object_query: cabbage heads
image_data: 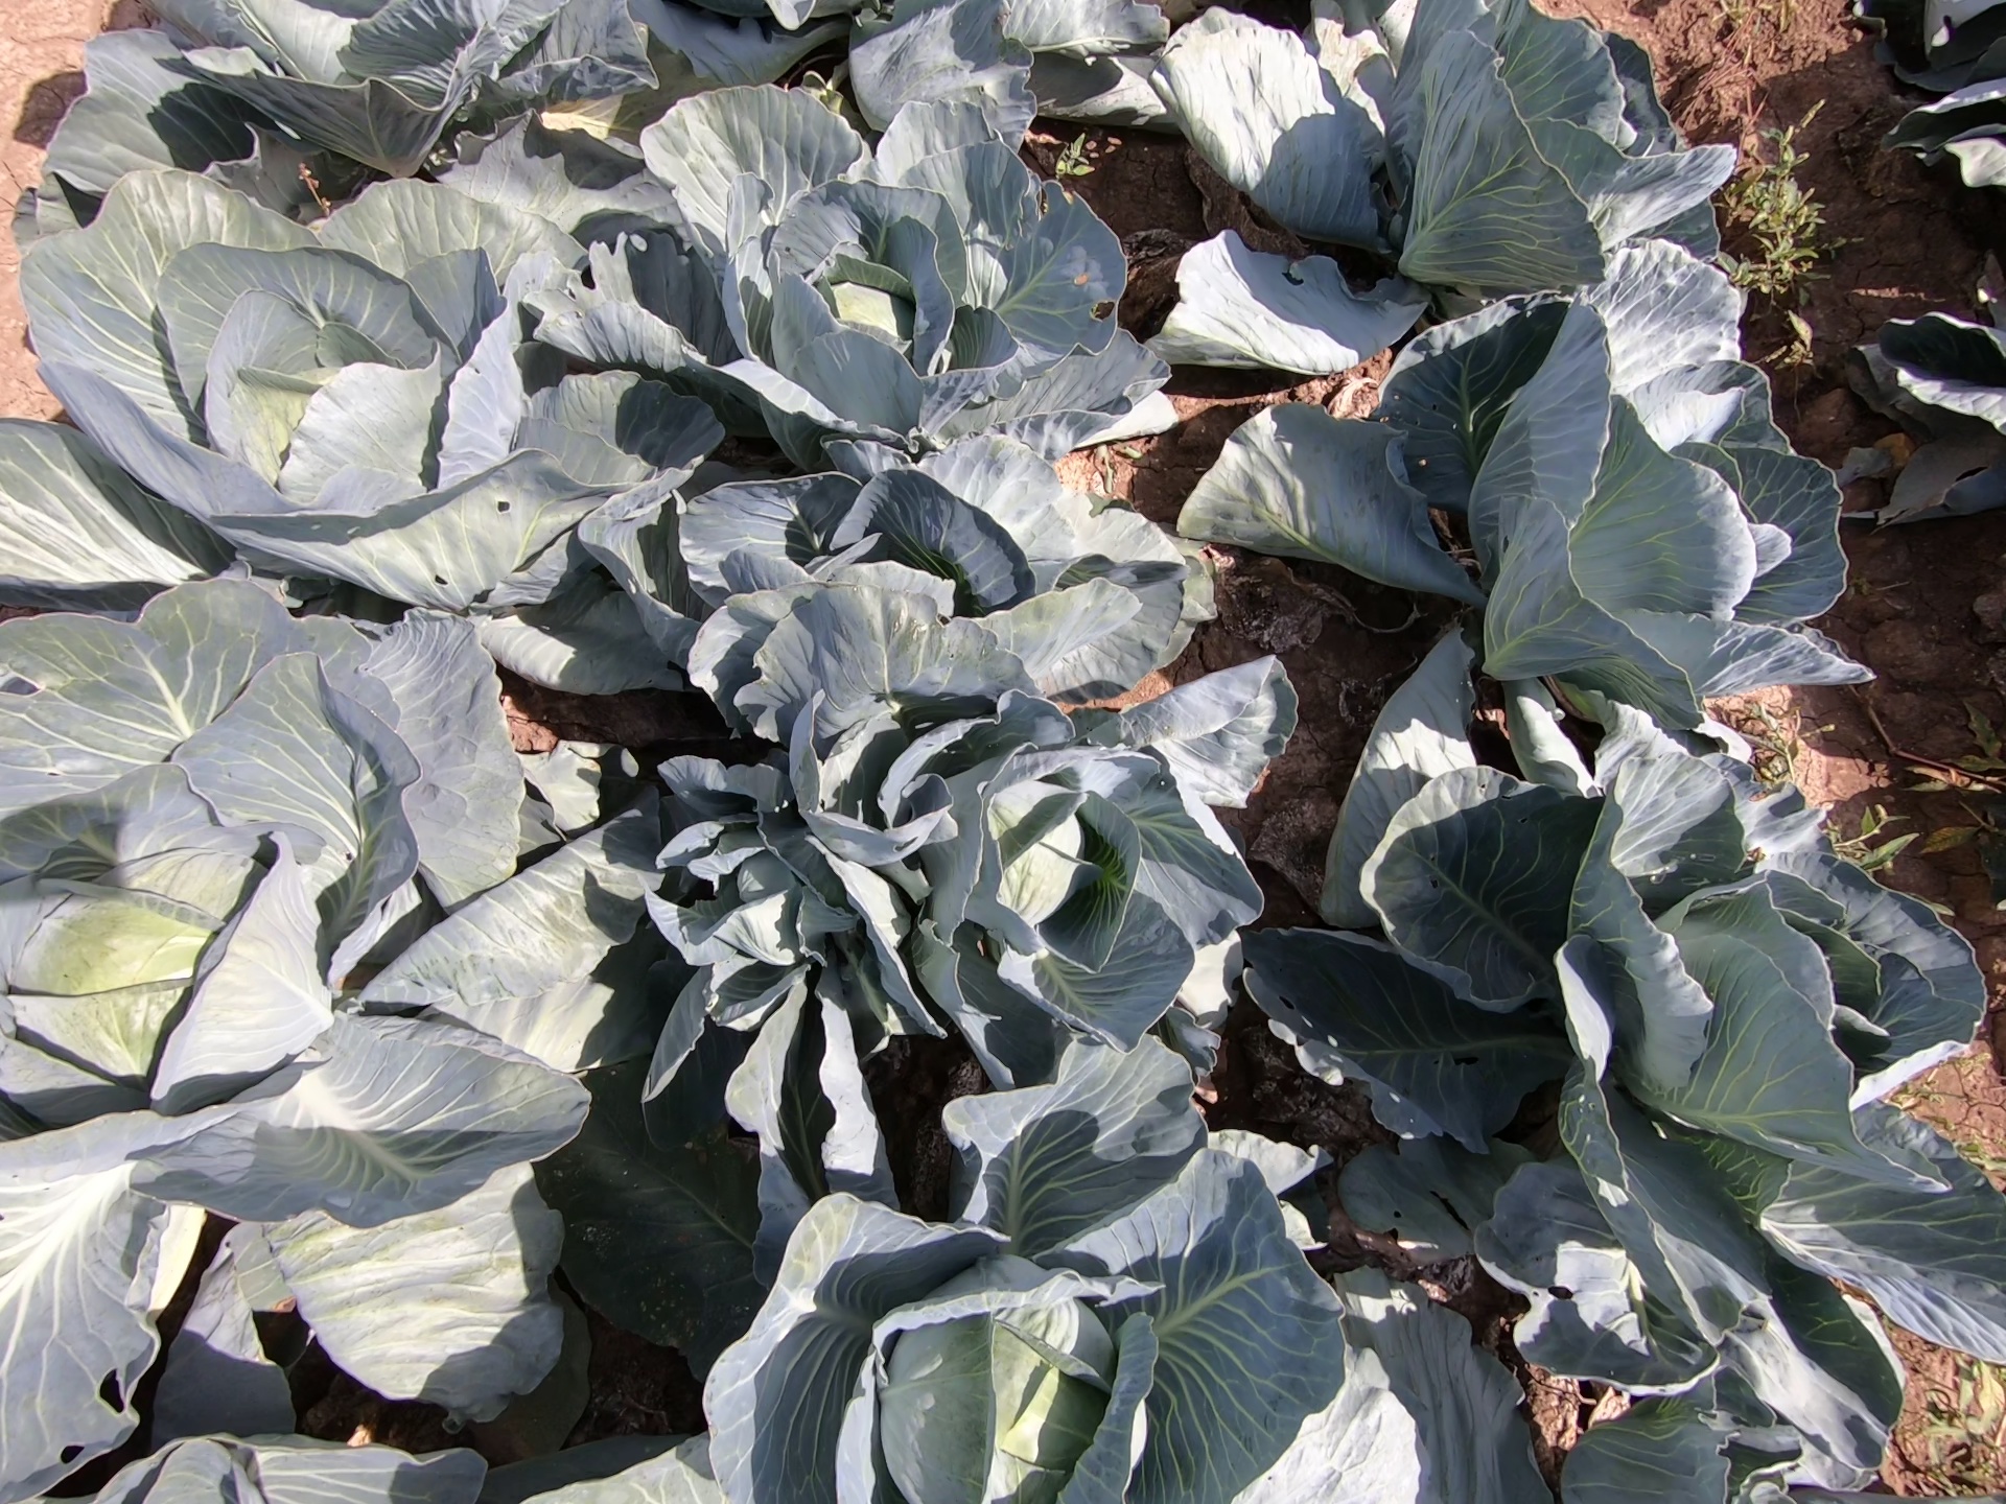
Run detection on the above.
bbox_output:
[787,267,928,420]
[256,368,409,491]
[10,854,324,1126]
[872,1261,1140,1499]
[952,773,1092,935]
